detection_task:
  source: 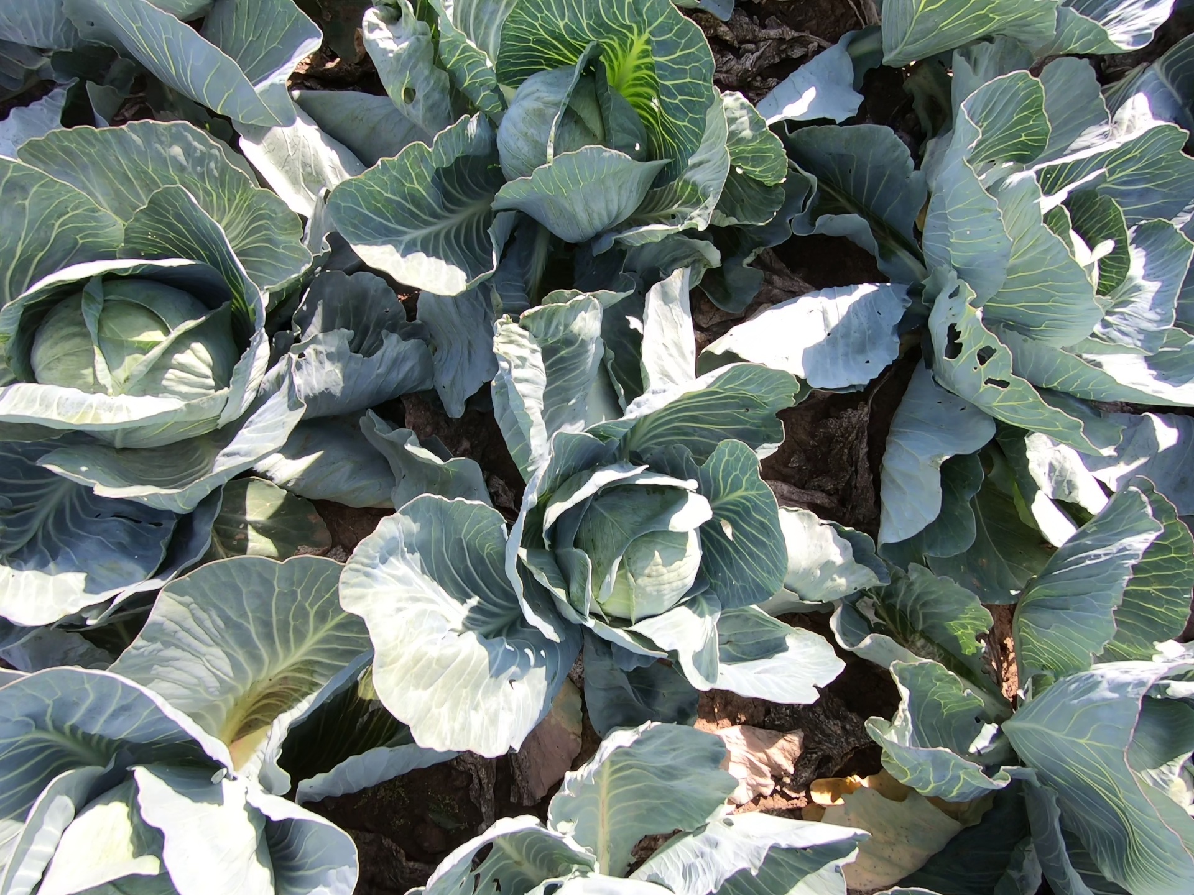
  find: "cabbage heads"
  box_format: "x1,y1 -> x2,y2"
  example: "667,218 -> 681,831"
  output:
29,279 -> 226,426
567,480 -> 700,616
1060,703 -> 1192,854
29,773 -> 269,891
1003,224 -> 1103,319
497,77 -> 648,209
